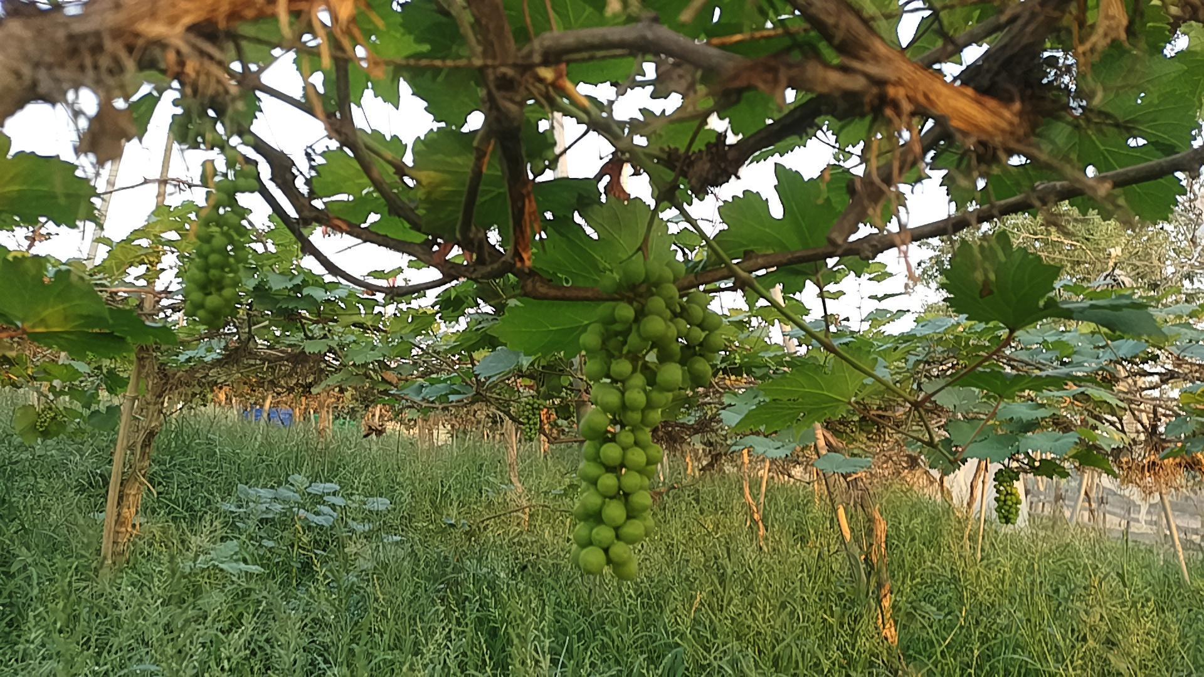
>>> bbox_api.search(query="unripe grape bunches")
[993,466,1022,524]
[171,105,258,330]
[512,397,544,443]
[573,251,724,579]
[34,404,59,431]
